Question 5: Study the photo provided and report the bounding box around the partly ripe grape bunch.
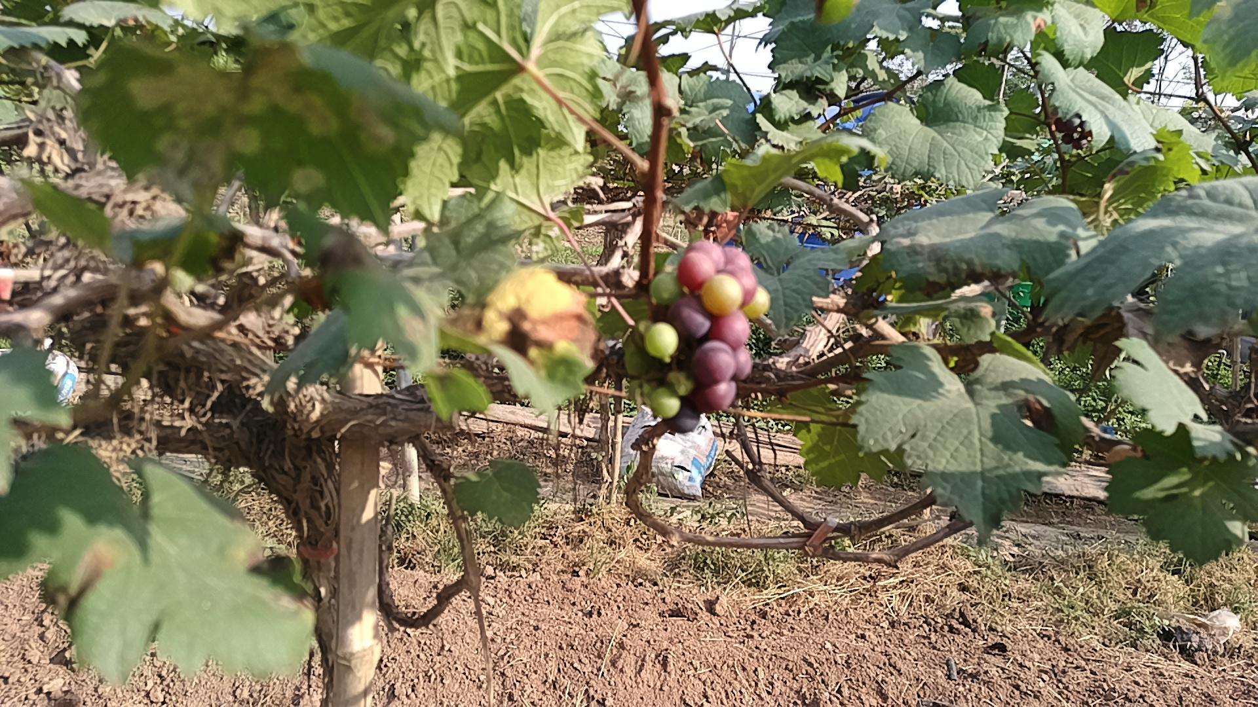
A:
[624,240,771,432]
